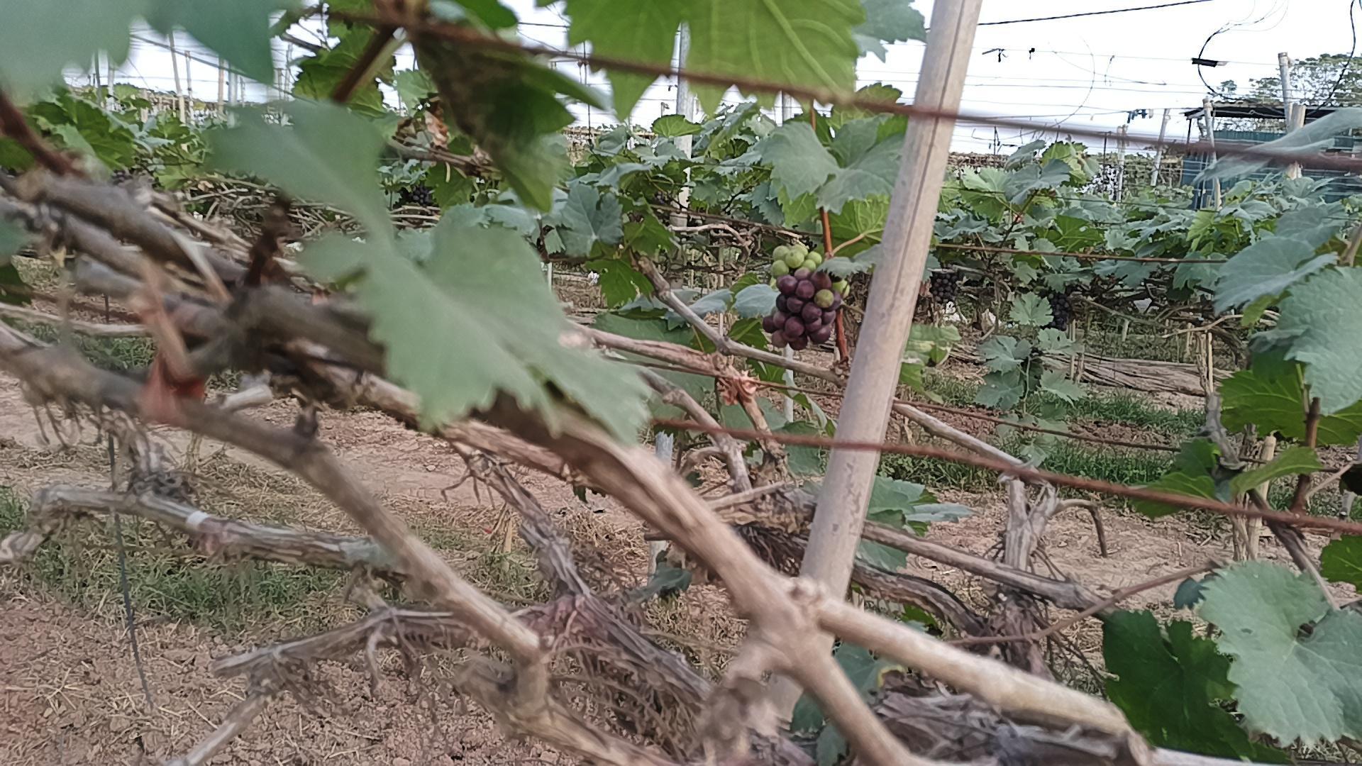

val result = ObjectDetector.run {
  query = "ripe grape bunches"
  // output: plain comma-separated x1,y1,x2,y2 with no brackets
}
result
929,268,963,305
1039,290,1074,331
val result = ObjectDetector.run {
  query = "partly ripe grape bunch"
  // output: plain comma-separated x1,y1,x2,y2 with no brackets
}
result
763,243,851,350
